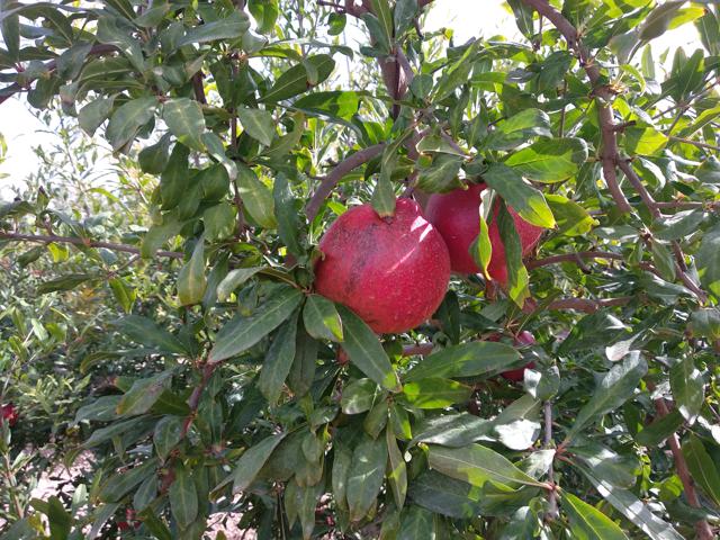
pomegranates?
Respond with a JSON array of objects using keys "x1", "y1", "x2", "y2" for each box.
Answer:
[
  {"x1": 424, "y1": 182, "x2": 543, "y2": 282},
  {"x1": 313, "y1": 197, "x2": 451, "y2": 334},
  {"x1": 487, "y1": 332, "x2": 540, "y2": 381},
  {"x1": 0, "y1": 403, "x2": 18, "y2": 427}
]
